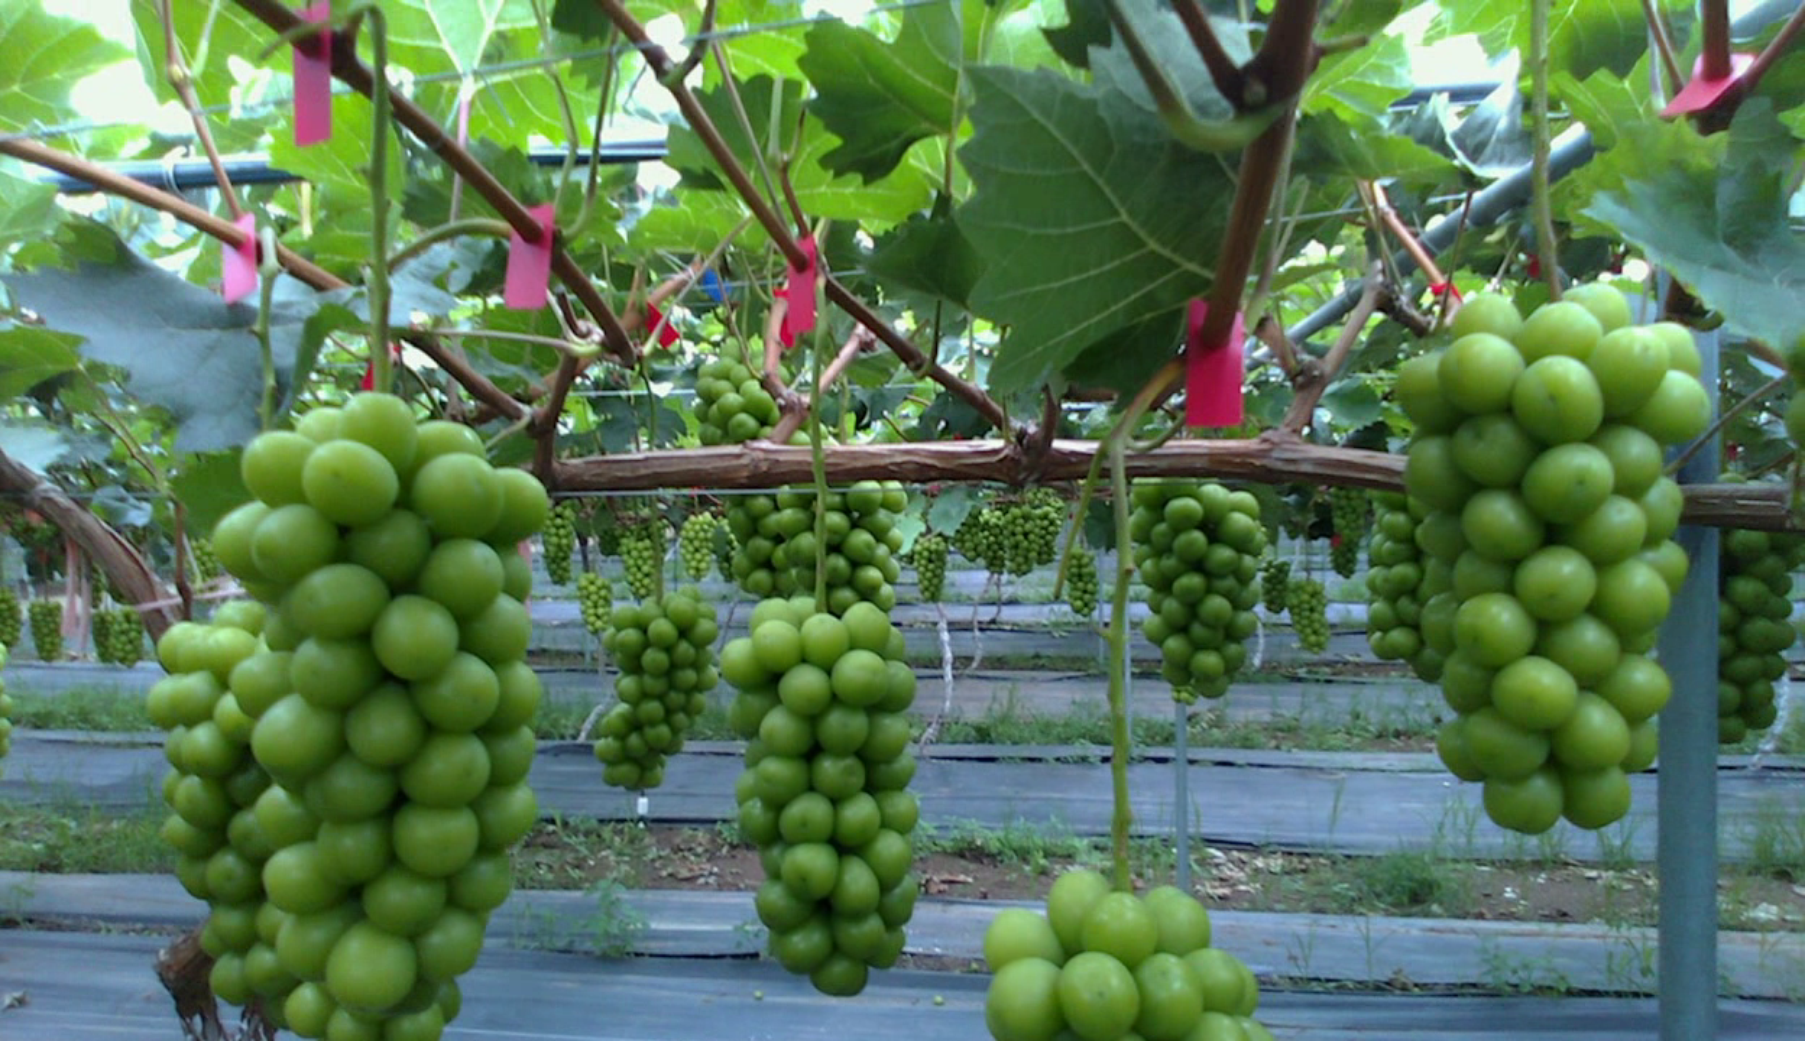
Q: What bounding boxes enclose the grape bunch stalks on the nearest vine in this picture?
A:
[1102,353,1182,892]
[337,1,389,393]
[810,278,827,613]
[1529,0,1562,302]
[249,224,282,432]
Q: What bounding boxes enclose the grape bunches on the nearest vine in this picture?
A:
[983,869,1271,1040]
[1397,282,1711,836]
[722,597,918,998]
[146,599,461,1040]
[211,392,548,1018]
